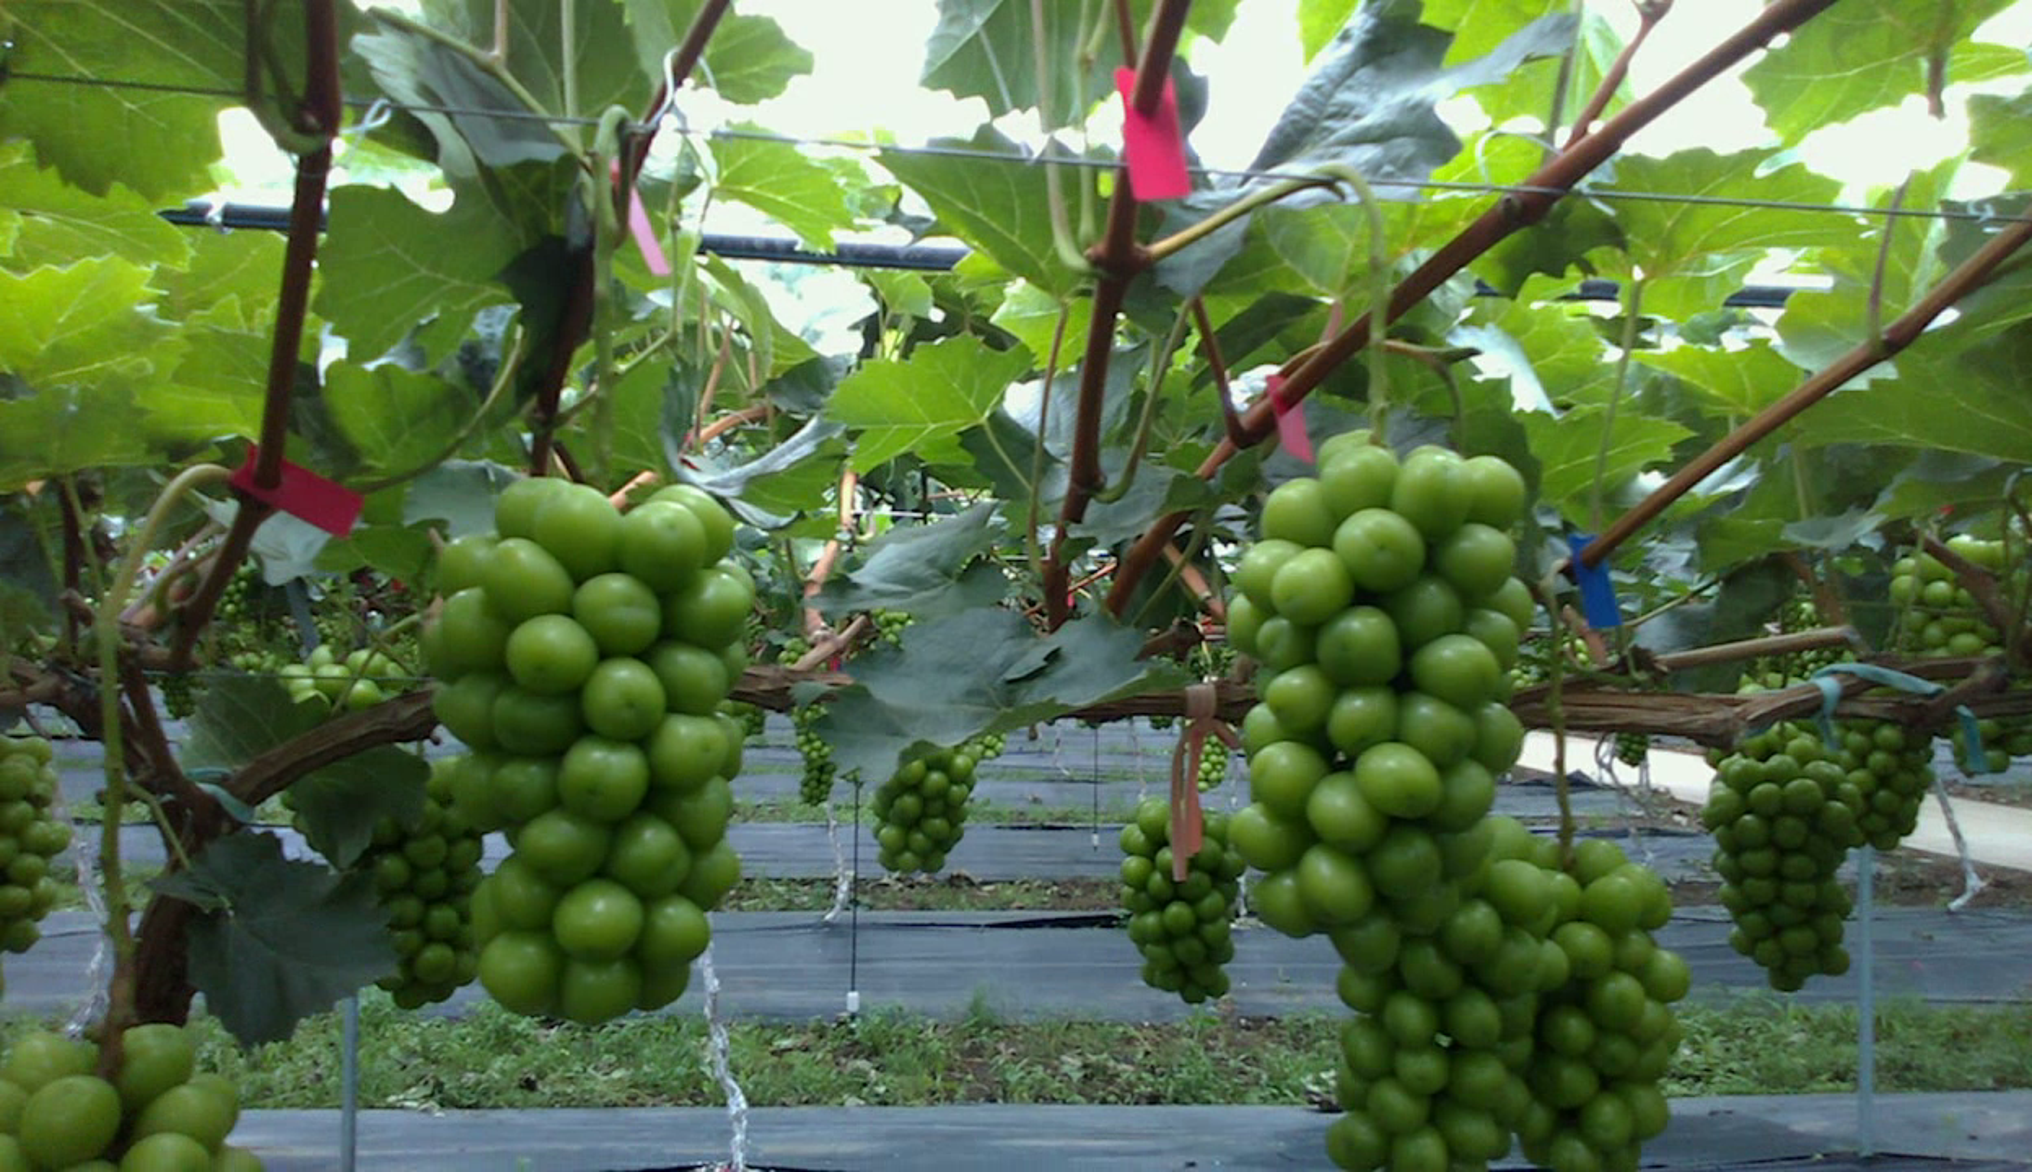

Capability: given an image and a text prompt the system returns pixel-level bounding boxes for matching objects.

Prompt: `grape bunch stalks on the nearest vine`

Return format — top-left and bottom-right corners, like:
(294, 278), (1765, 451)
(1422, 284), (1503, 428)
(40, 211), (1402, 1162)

(1544, 555), (1573, 874)
(93, 466), (236, 1081)
(1143, 163), (1389, 444)
(591, 107), (630, 498)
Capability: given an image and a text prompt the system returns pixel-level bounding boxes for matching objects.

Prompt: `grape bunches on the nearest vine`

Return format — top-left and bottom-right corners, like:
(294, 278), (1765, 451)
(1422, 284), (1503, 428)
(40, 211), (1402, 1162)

(420, 475), (759, 1027)
(1511, 832), (1690, 1170)
(0, 1022), (259, 1170)
(1327, 812), (1553, 1169)
(1226, 430), (1535, 975)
